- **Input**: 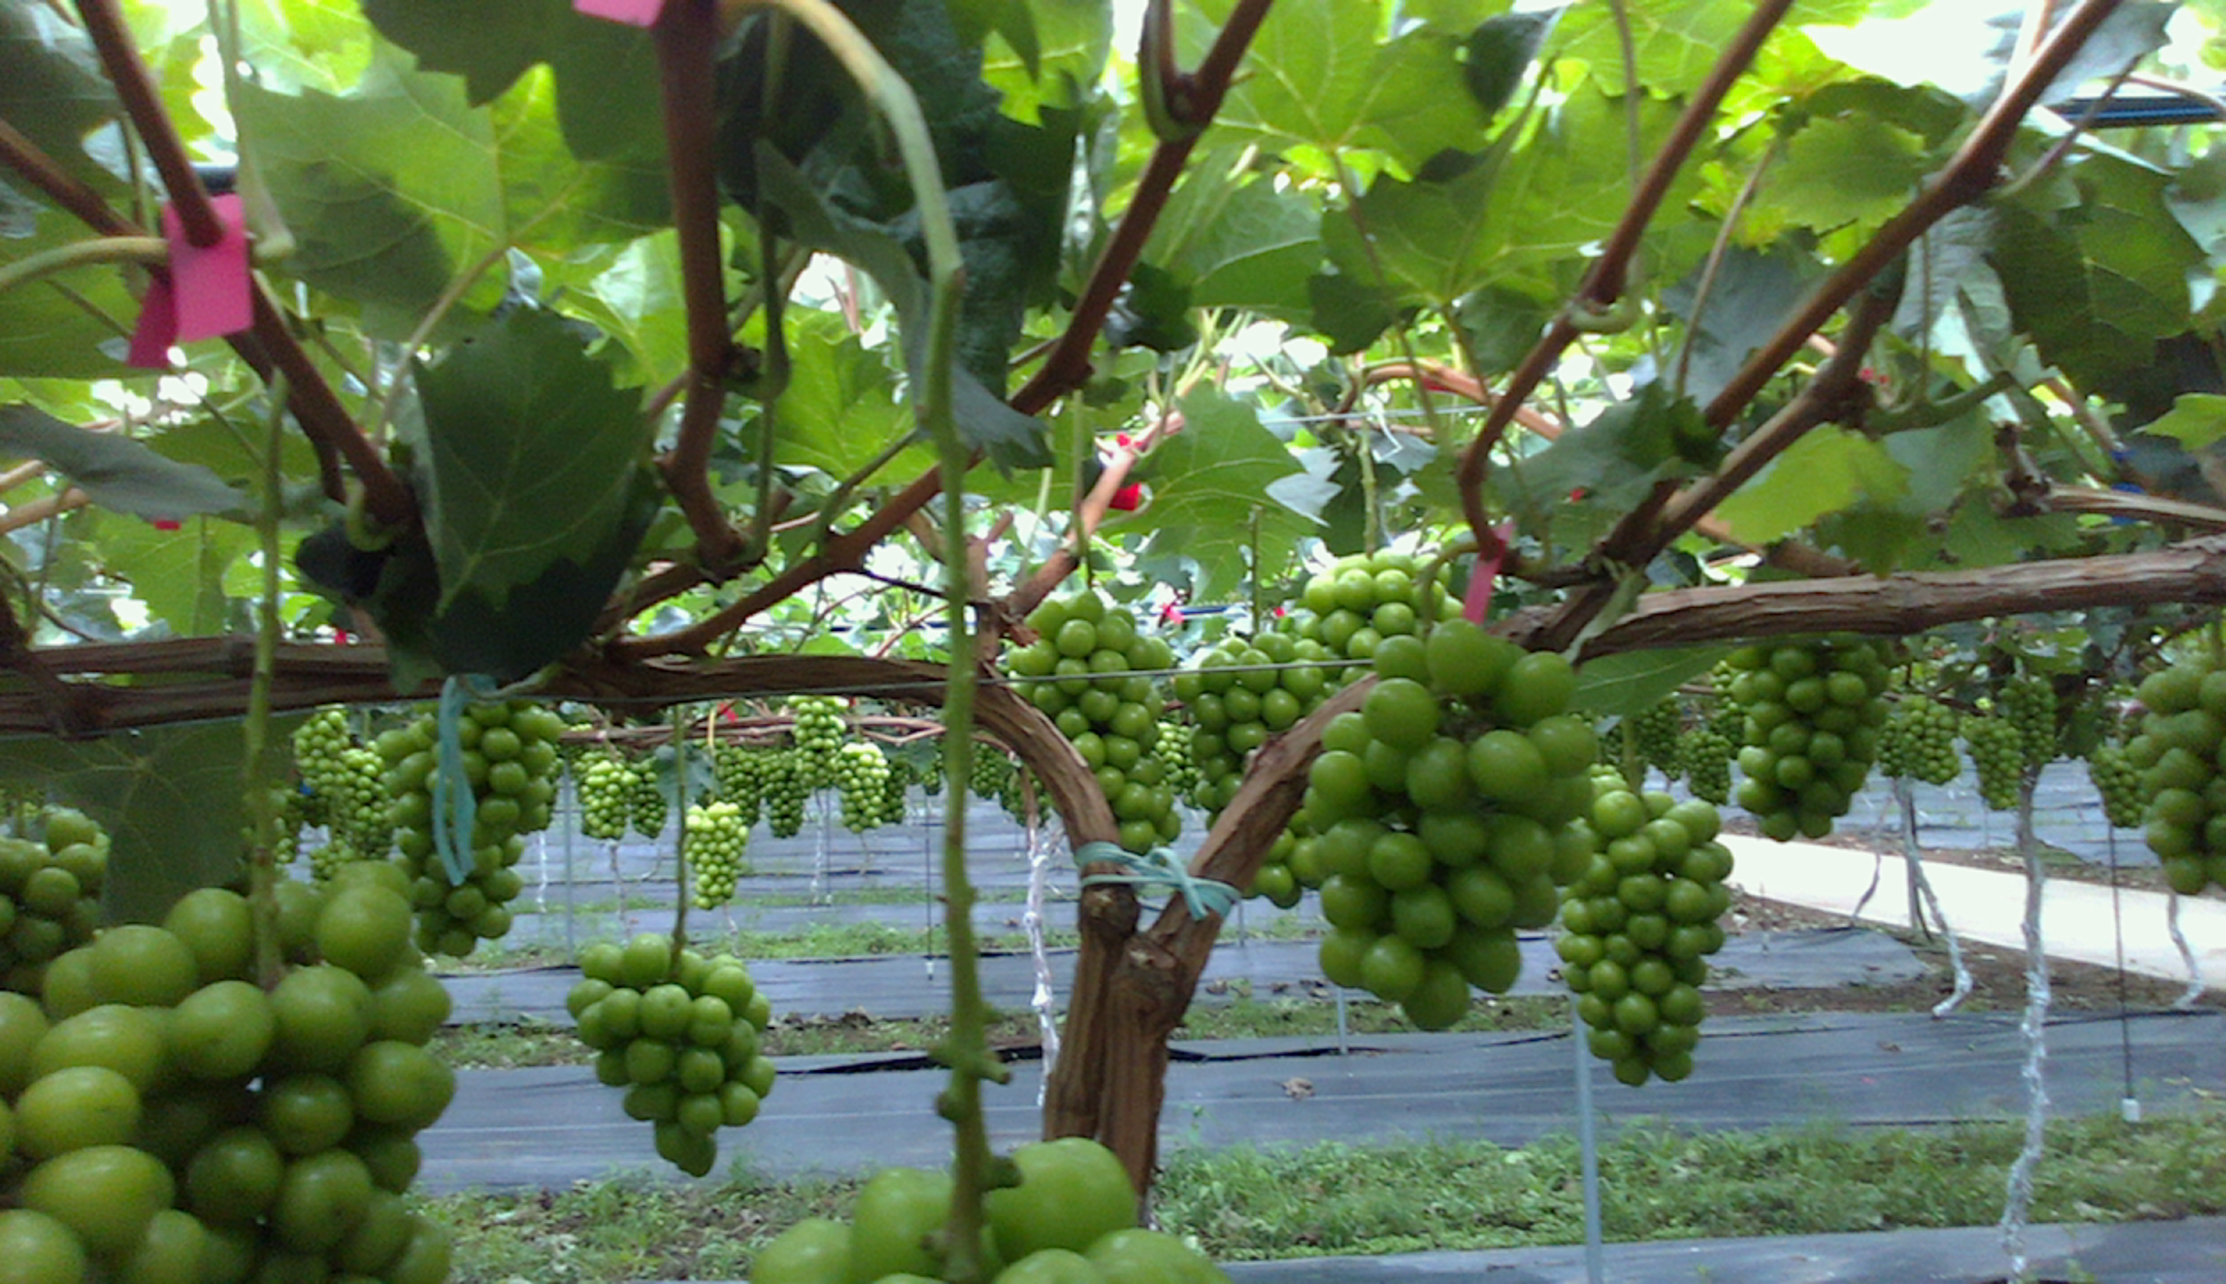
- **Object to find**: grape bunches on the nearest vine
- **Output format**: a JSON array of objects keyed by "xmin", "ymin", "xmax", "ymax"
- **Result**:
[
  {"xmin": 45, "ymin": 858, "xmax": 453, "ymax": 1282},
  {"xmin": 1307, "ymin": 619, "xmax": 1596, "ymax": 1031},
  {"xmin": 744, "ymin": 1138, "xmax": 1218, "ymax": 1282},
  {"xmin": 2, "ymin": 992, "xmax": 212, "ymax": 1282}
]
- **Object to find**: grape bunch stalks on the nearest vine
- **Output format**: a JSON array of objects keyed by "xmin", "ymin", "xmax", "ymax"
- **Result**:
[
  {"xmin": 1420, "ymin": 539, "xmax": 1484, "ymax": 637},
  {"xmin": 726, "ymin": 0, "xmax": 1018, "ymax": 1268},
  {"xmin": 248, "ymin": 362, "xmax": 289, "ymax": 984}
]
